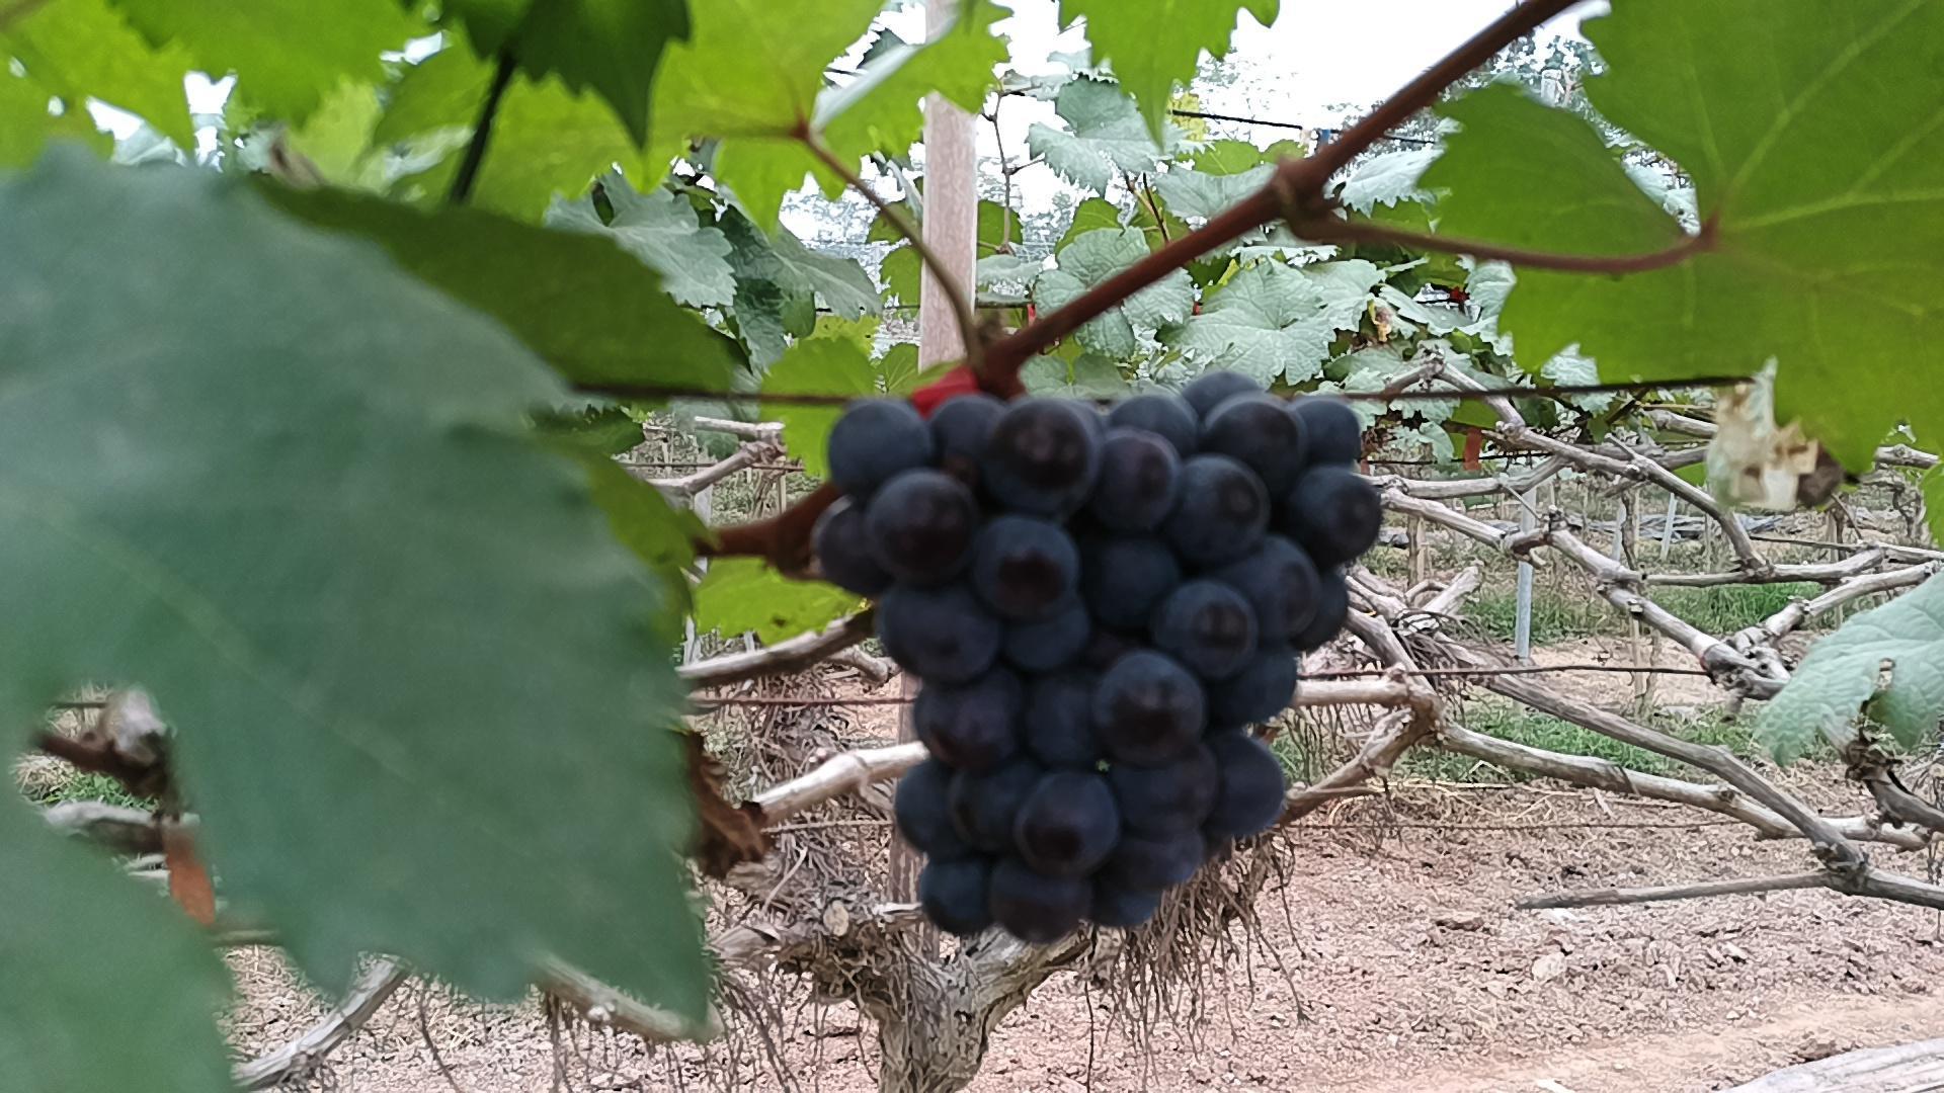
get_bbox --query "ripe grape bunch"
[816,371,1380,941]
